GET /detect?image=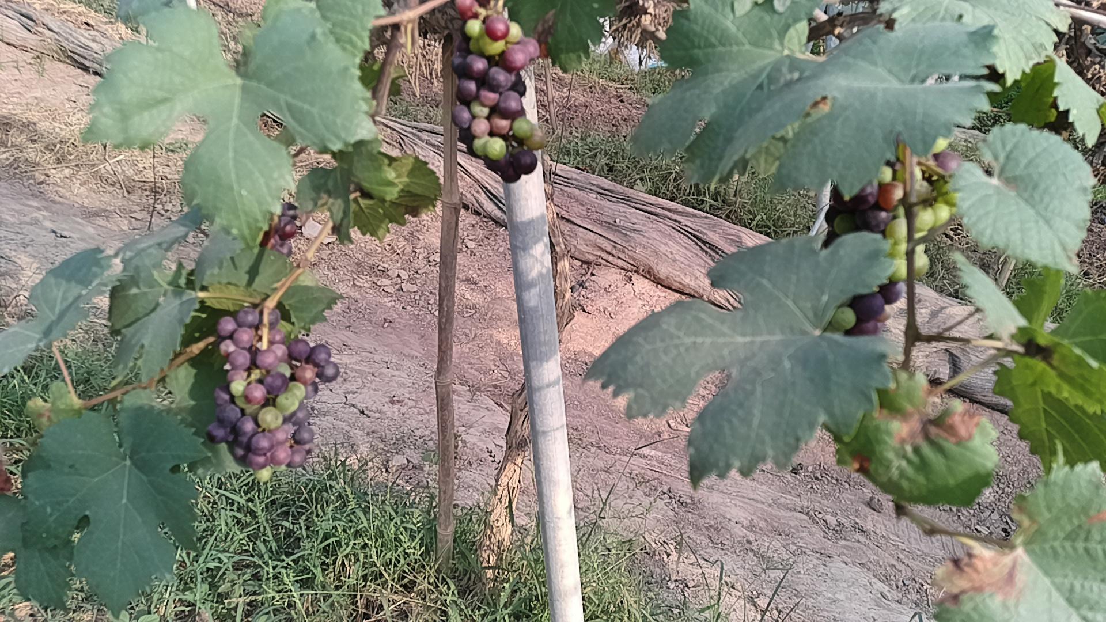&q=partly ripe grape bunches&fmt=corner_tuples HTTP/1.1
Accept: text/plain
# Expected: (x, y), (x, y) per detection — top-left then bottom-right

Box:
(825, 139), (961, 336)
(450, 0), (546, 181)
(207, 306), (339, 480)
